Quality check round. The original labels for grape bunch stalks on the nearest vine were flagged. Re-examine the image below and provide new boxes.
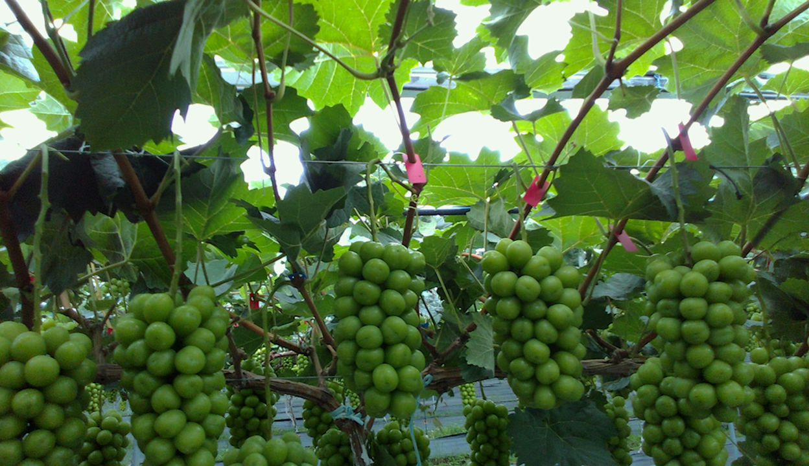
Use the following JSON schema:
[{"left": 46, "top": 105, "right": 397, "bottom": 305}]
[
  {"left": 755, "top": 280, "right": 775, "bottom": 358},
  {"left": 513, "top": 162, "right": 526, "bottom": 240},
  {"left": 261, "top": 283, "right": 281, "bottom": 438},
  {"left": 366, "top": 159, "right": 412, "bottom": 241},
  {"left": 667, "top": 144, "right": 693, "bottom": 267},
  {"left": 152, "top": 150, "right": 182, "bottom": 298},
  {"left": 7, "top": 144, "right": 69, "bottom": 331}
]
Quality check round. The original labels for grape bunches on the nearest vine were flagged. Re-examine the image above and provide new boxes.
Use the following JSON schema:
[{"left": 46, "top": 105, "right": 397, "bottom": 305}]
[
  {"left": 333, "top": 241, "right": 426, "bottom": 420},
  {"left": 112, "top": 285, "right": 229, "bottom": 465},
  {"left": 734, "top": 349, "right": 808, "bottom": 465},
  {"left": 482, "top": 238, "right": 587, "bottom": 411},
  {"left": 642, "top": 241, "right": 756, "bottom": 423},
  {"left": 224, "top": 433, "right": 319, "bottom": 465},
  {"left": 631, "top": 357, "right": 728, "bottom": 465},
  {"left": 0, "top": 322, "right": 99, "bottom": 465}
]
